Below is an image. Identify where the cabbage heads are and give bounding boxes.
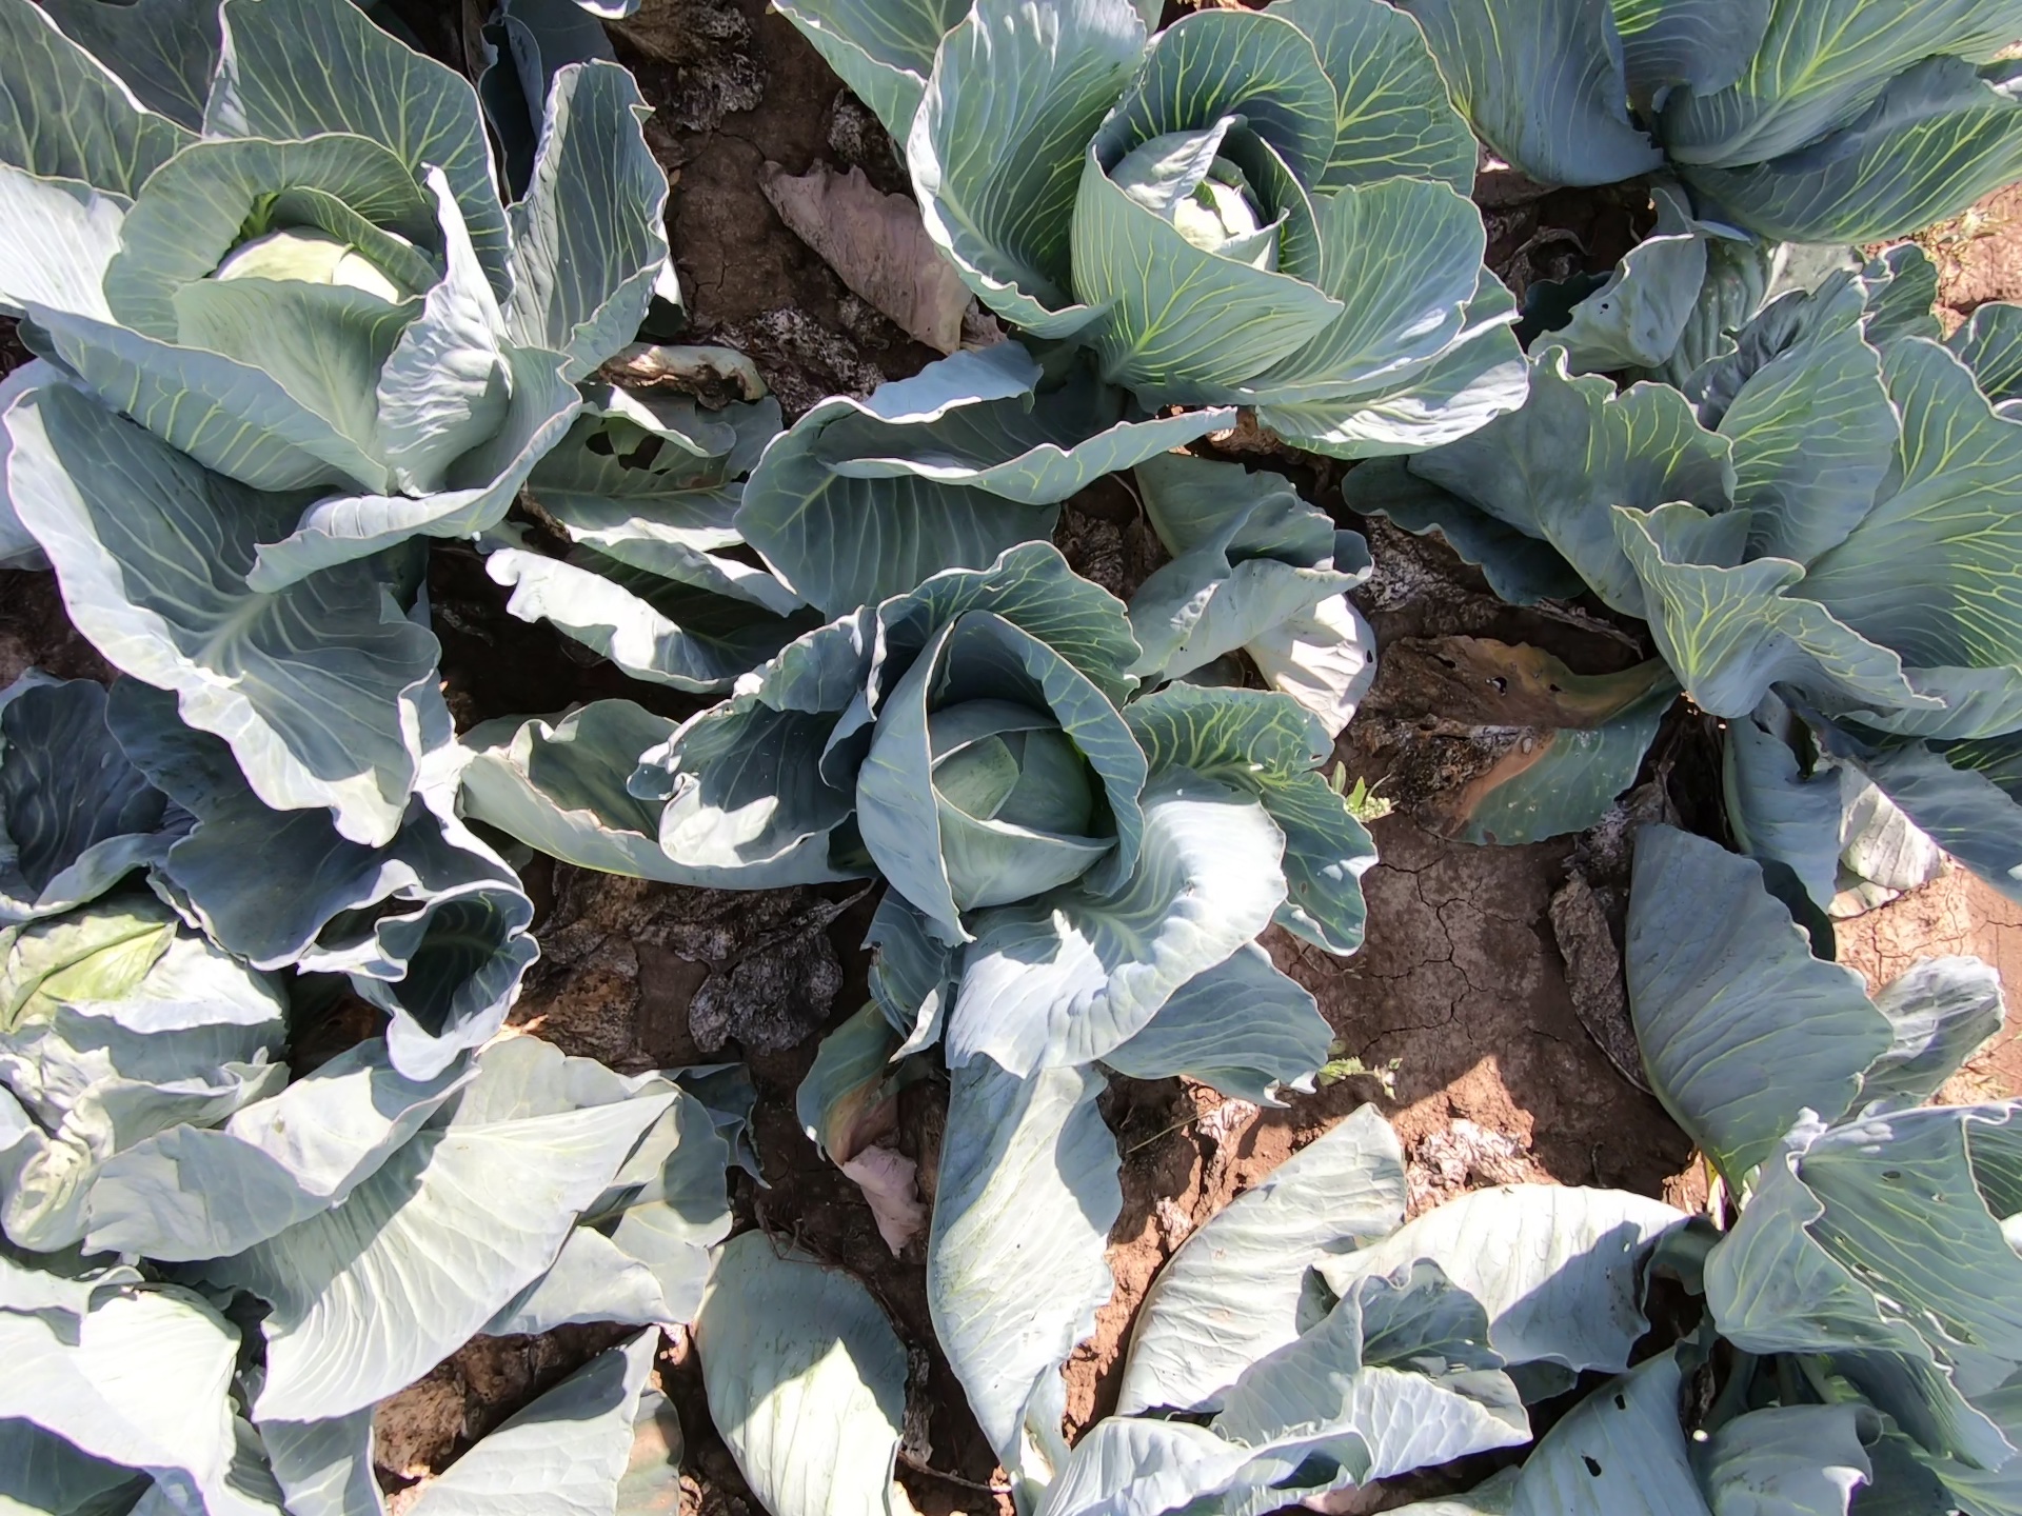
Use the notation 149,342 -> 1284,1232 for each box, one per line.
1112,166 -> 1281,359
880,703 -> 1096,898
202,222 -> 462,465
4,887 -> 294,1143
